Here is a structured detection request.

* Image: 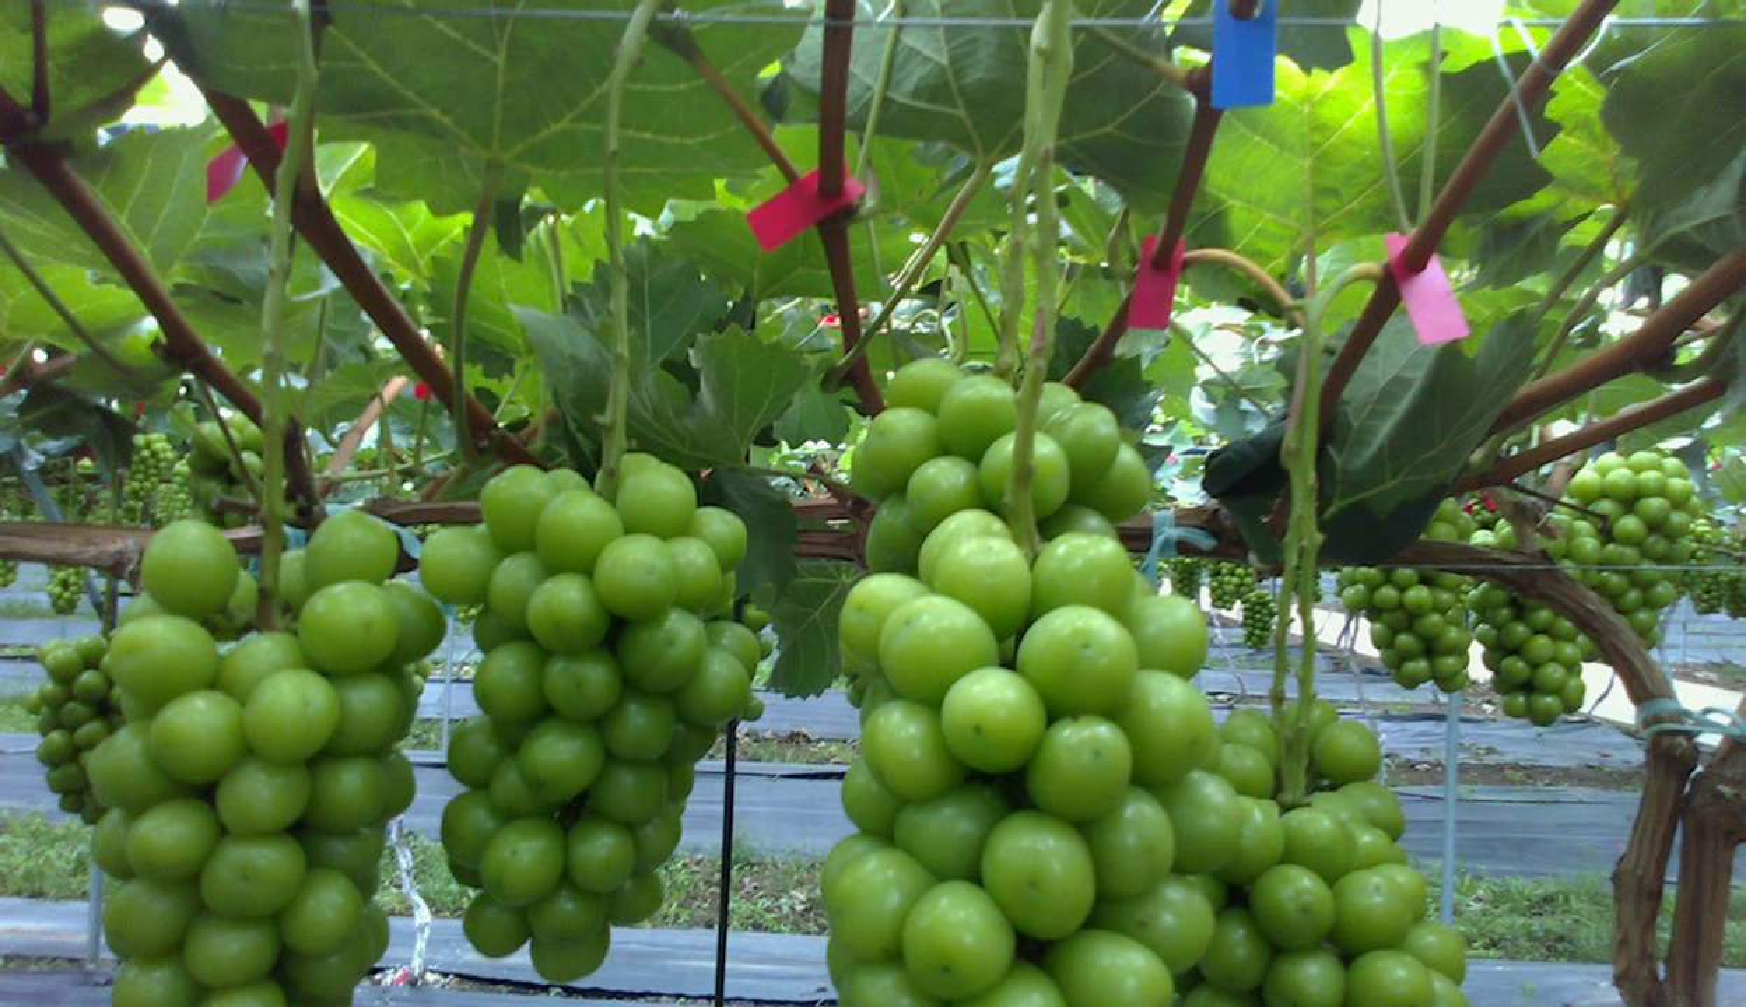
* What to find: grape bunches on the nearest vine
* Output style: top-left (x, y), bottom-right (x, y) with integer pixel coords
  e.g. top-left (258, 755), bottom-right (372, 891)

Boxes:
top-left (852, 357), bottom-right (1153, 573)
top-left (817, 506), bottom-right (1242, 1006)
top-left (418, 457), bottom-right (768, 985)
top-left (1172, 796), bottom-right (1469, 1006)
top-left (84, 515), bottom-right (448, 1006)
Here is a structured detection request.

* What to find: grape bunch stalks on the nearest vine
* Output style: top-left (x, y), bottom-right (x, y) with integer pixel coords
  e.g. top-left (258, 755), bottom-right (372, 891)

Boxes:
top-left (1007, 0), bottom-right (1076, 551)
top-left (1286, 260), bottom-right (1374, 803)
top-left (256, 0), bottom-right (319, 624)
top-left (592, 0), bottom-right (665, 501)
